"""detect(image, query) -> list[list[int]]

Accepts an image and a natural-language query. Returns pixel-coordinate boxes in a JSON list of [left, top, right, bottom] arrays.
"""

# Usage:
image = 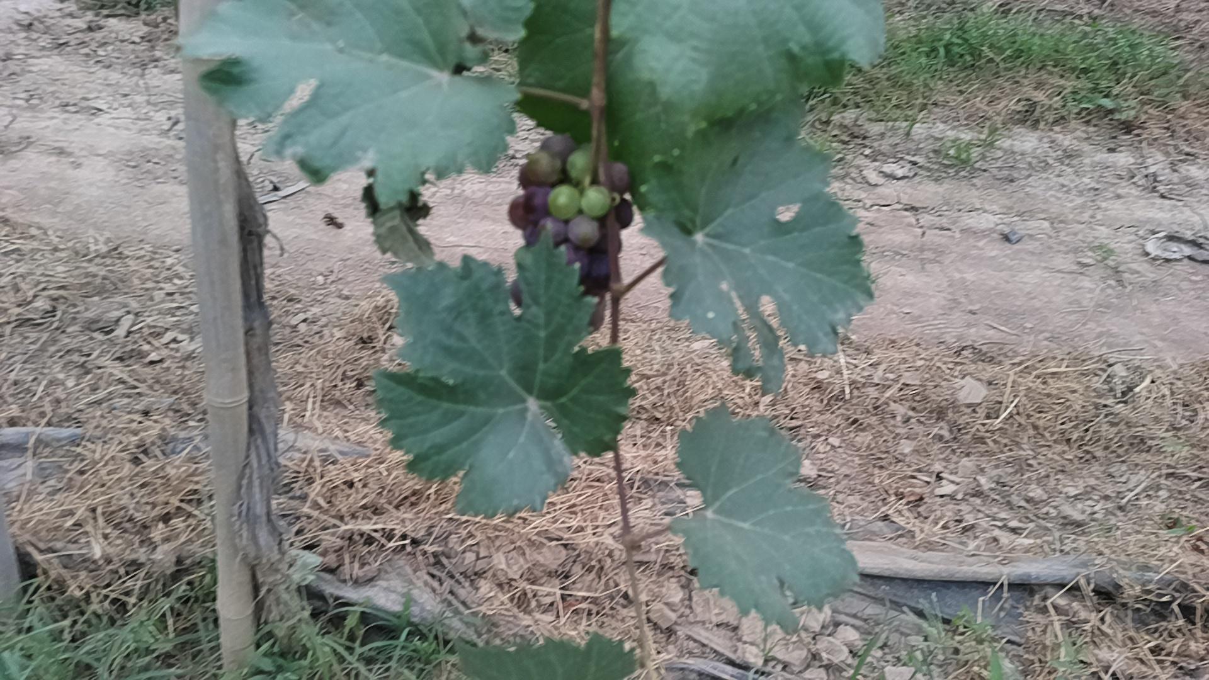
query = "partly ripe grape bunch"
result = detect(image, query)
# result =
[[508, 134, 633, 297]]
